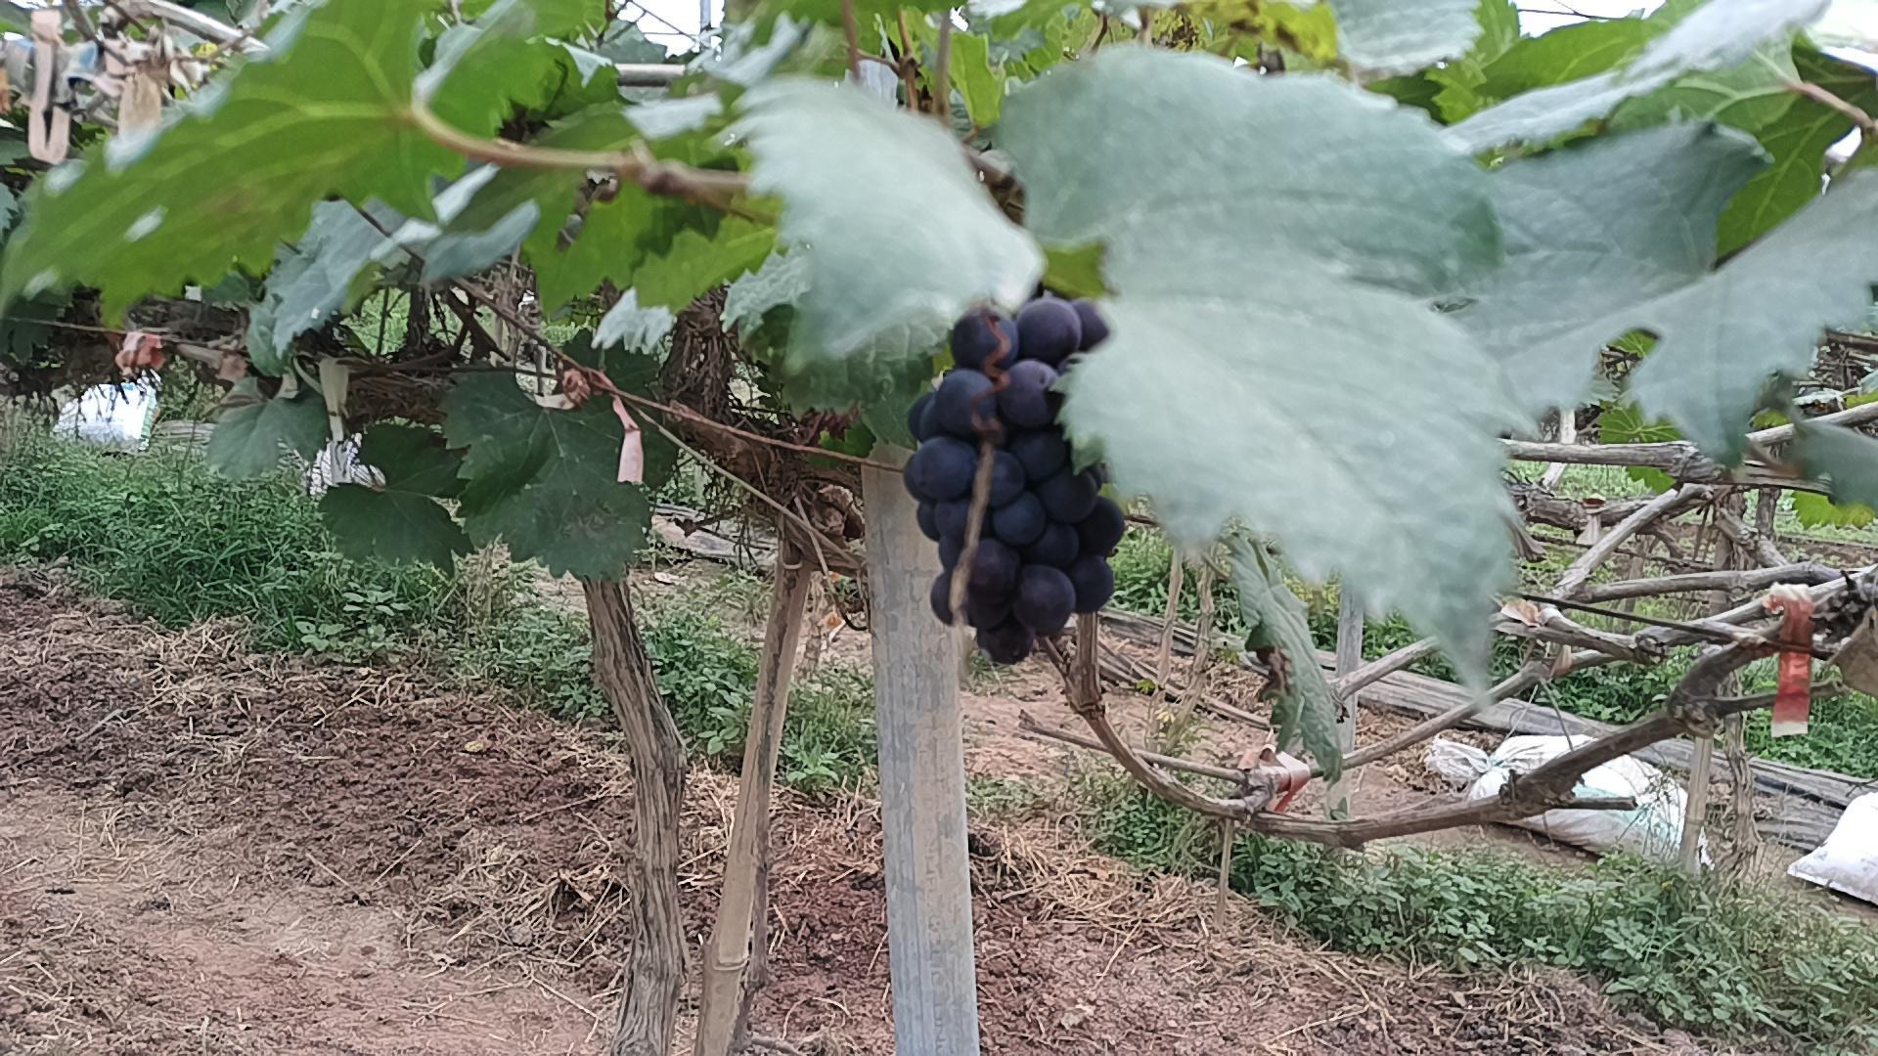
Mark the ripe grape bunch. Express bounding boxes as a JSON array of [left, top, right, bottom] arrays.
[[904, 296, 1124, 664]]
